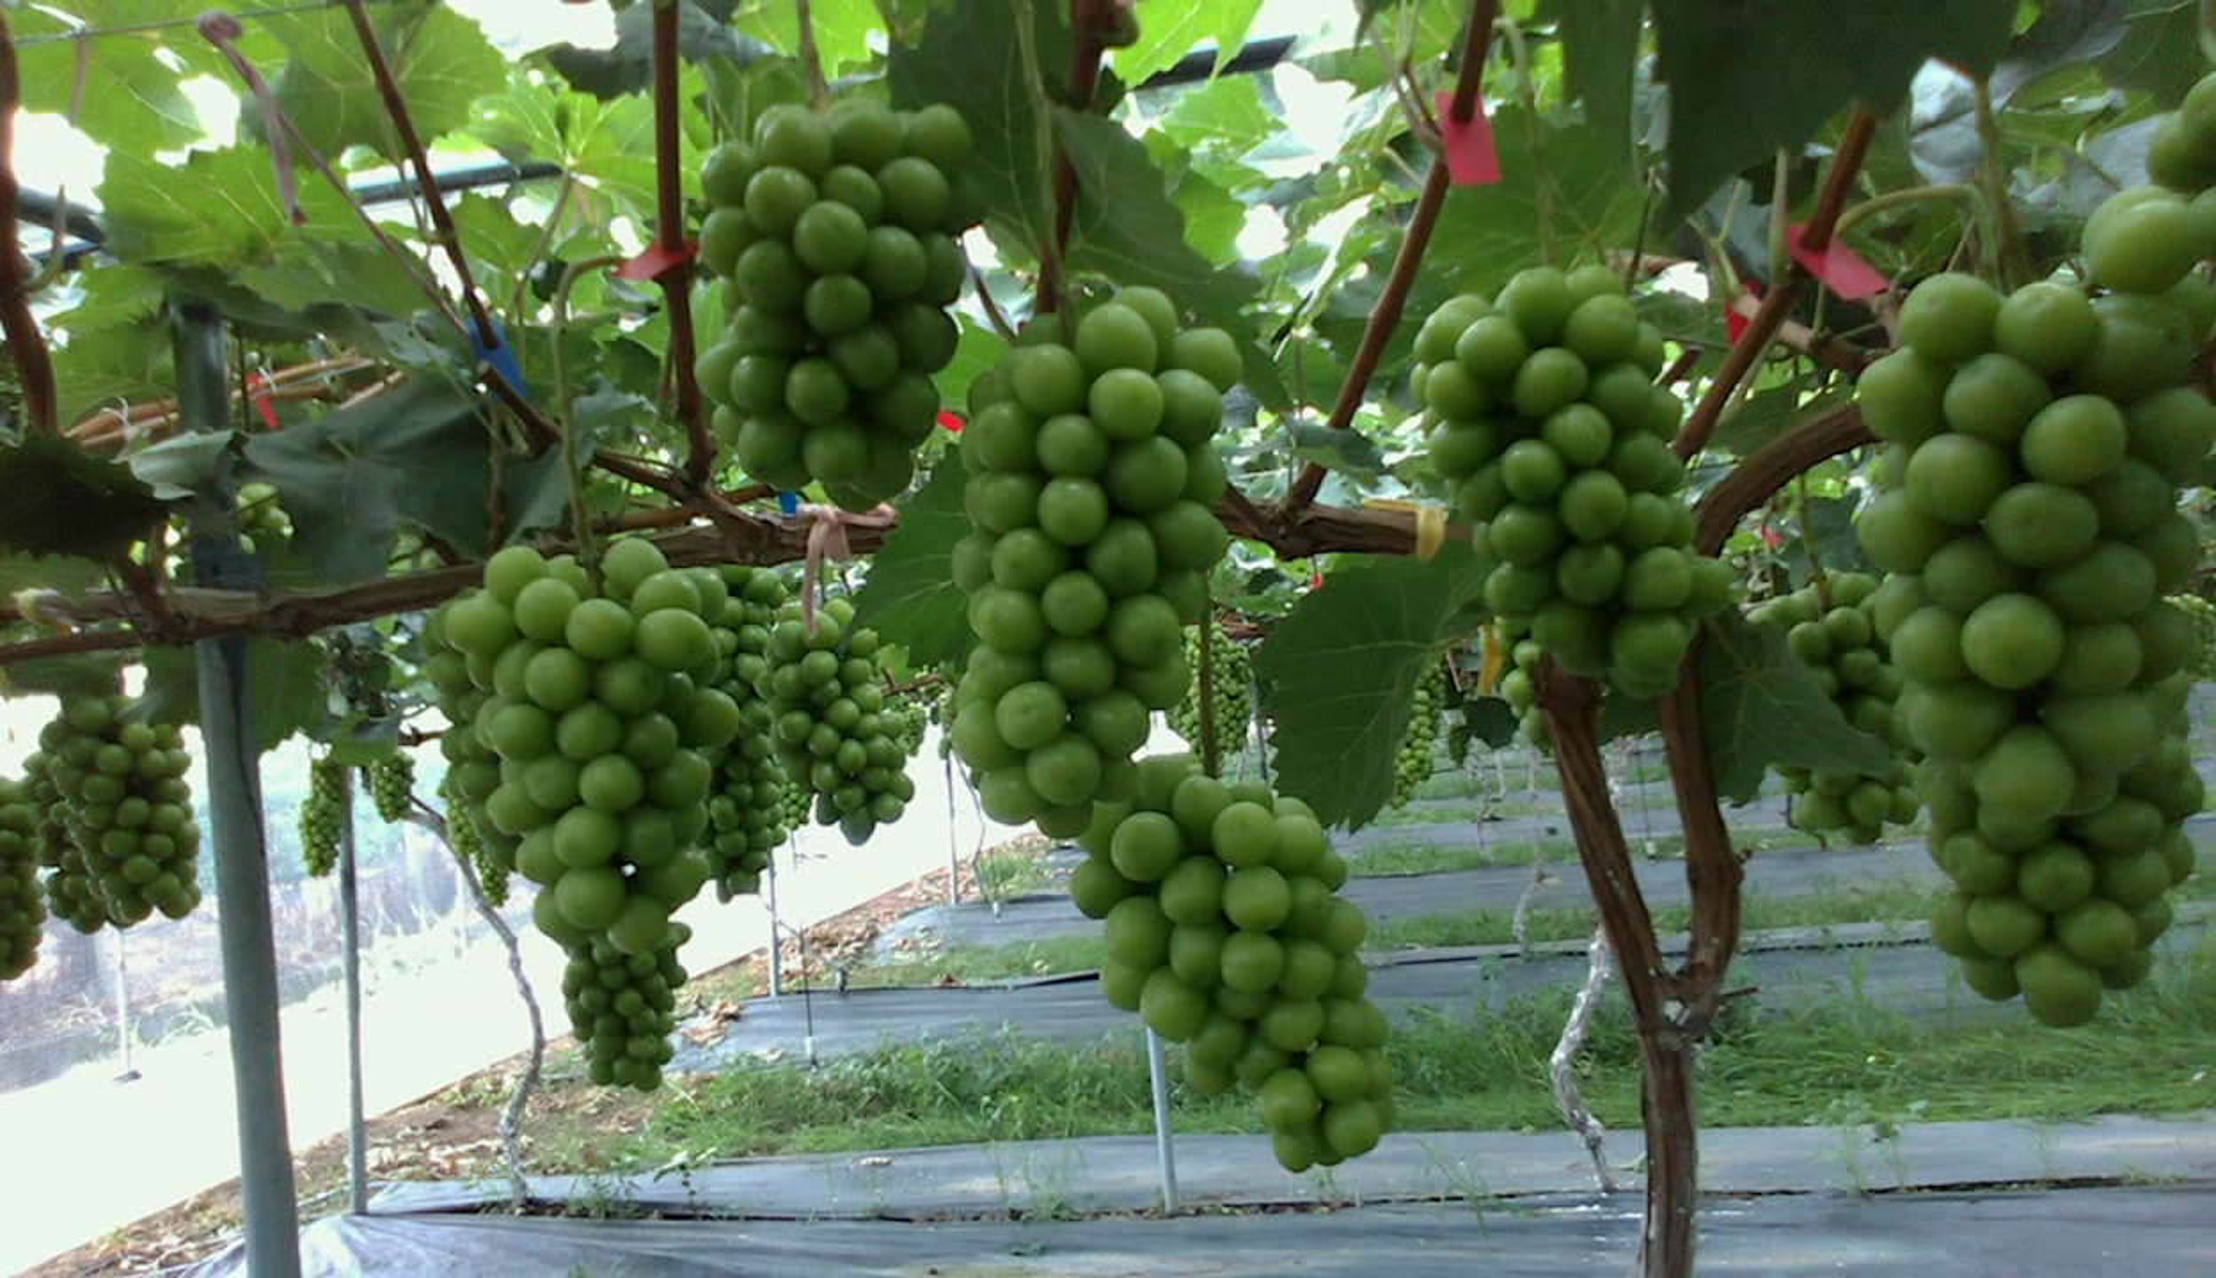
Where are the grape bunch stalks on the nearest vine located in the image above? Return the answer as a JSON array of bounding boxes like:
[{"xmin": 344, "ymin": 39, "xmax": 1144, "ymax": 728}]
[
  {"xmin": 554, "ymin": 256, "xmax": 621, "ymax": 596},
  {"xmin": 1838, "ymin": 179, "xmax": 1999, "ymax": 284},
  {"xmin": 797, "ymin": 2, "xmax": 827, "ymax": 114},
  {"xmin": 1016, "ymin": 0, "xmax": 1076, "ymax": 348},
  {"xmin": 1493, "ymin": 20, "xmax": 1555, "ymax": 264},
  {"xmin": 1200, "ymin": 607, "xmax": 1218, "ymax": 777}
]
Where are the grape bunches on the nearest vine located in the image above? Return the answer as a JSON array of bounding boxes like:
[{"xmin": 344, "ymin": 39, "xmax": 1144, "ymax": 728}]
[
  {"xmin": 1069, "ymin": 753, "xmax": 1394, "ymax": 1170},
  {"xmin": 694, "ymin": 101, "xmax": 991, "ymax": 515},
  {"xmin": 1854, "ymin": 190, "xmax": 2214, "ymax": 1029},
  {"xmin": 1406, "ymin": 264, "xmax": 1726, "ymax": 699},
  {"xmin": 442, "ymin": 534, "xmax": 740, "ymax": 953},
  {"xmin": 952, "ymin": 288, "xmax": 1245, "ymax": 840}
]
